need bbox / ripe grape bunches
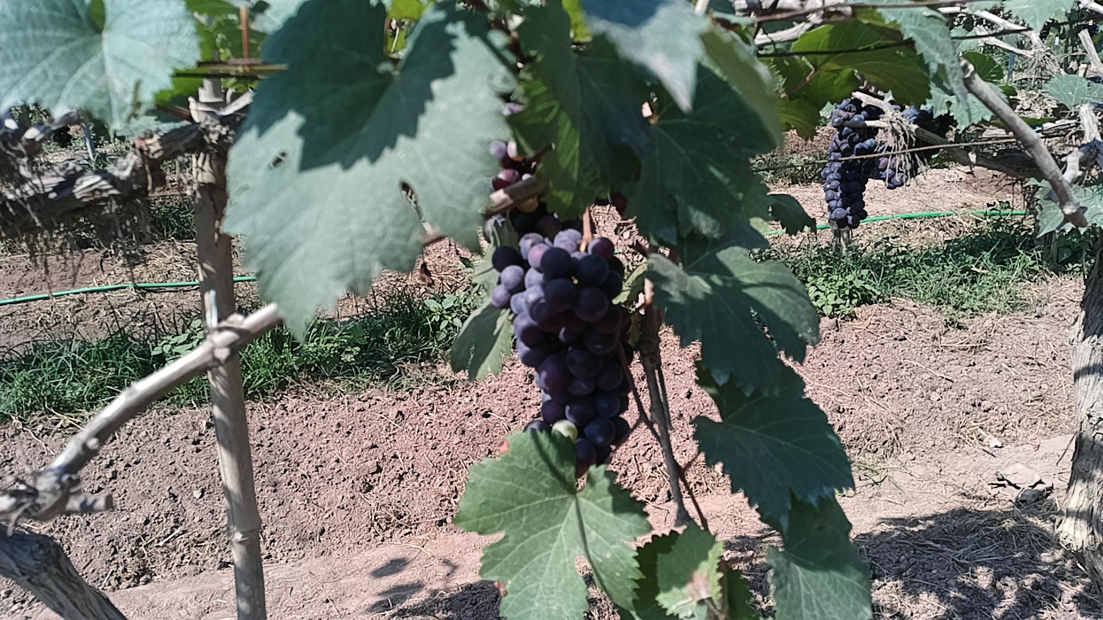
[822,98,903,238]
[484,141,582,239]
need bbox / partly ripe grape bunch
[492,229,629,476]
